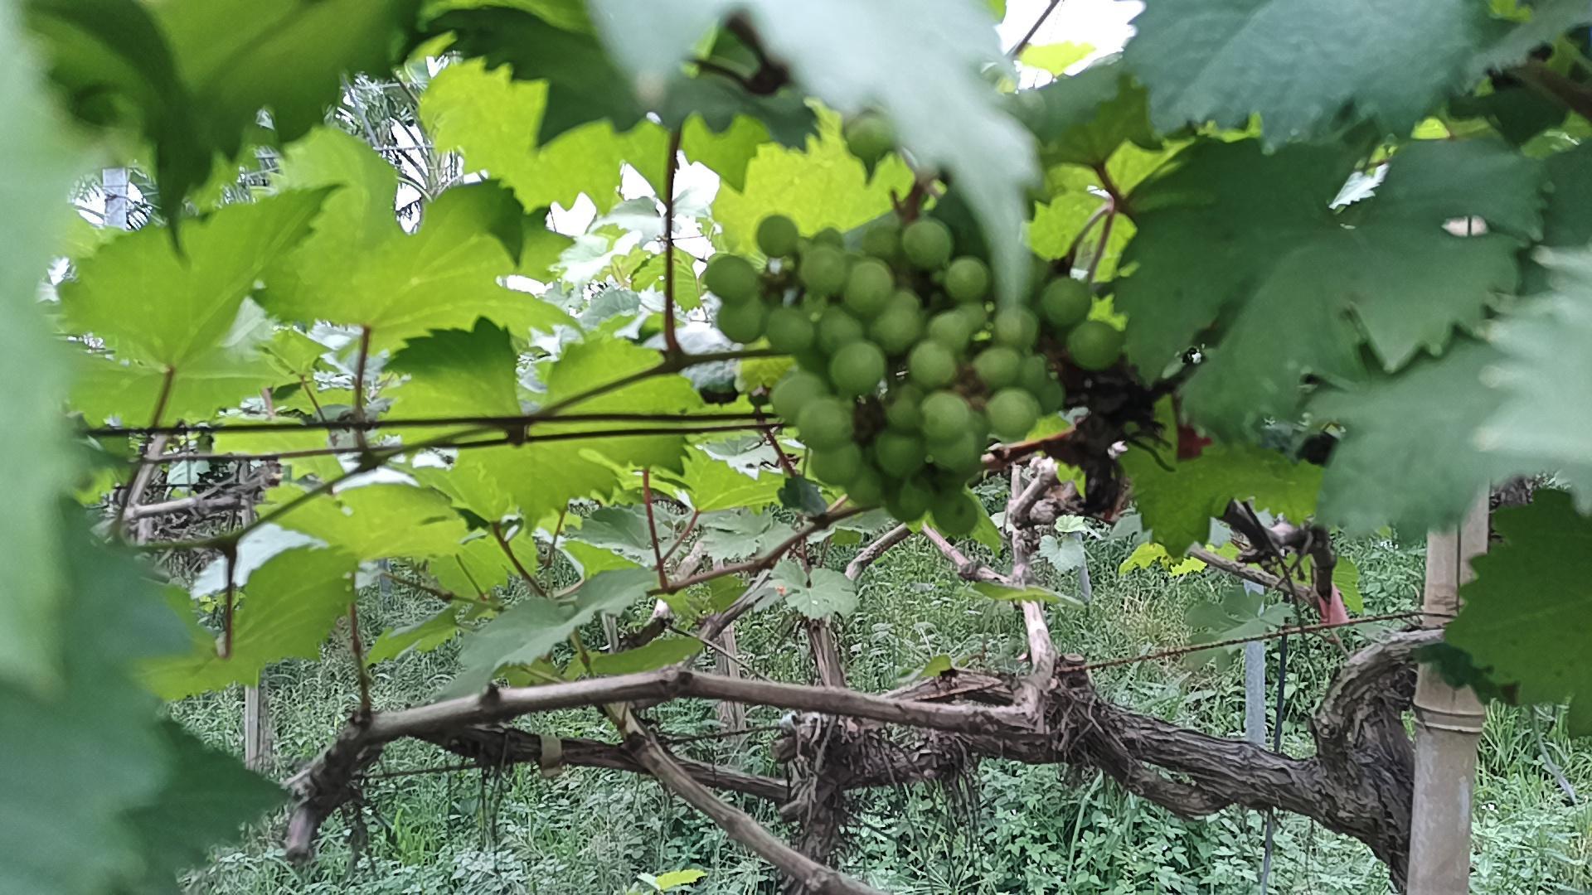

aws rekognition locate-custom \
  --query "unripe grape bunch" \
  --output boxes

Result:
[704,109,1119,535]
